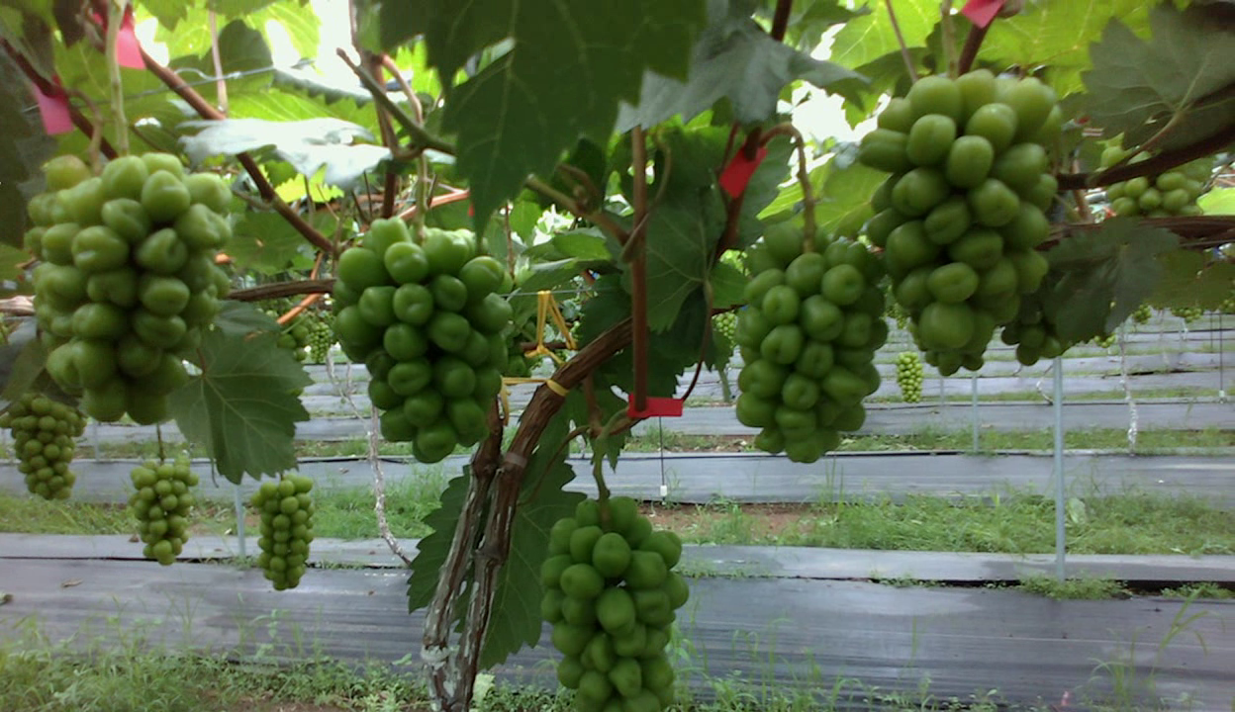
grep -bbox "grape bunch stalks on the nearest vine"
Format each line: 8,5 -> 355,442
594,407 -> 623,528
375,55 -> 428,243
769,124 -> 816,247
941,0 -> 956,75
106,1 -> 132,154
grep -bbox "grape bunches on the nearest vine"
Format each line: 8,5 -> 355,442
332,215 -> 512,465
860,69 -> 1064,358
734,222 -> 890,461
25,153 -> 233,425
539,496 -> 688,710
